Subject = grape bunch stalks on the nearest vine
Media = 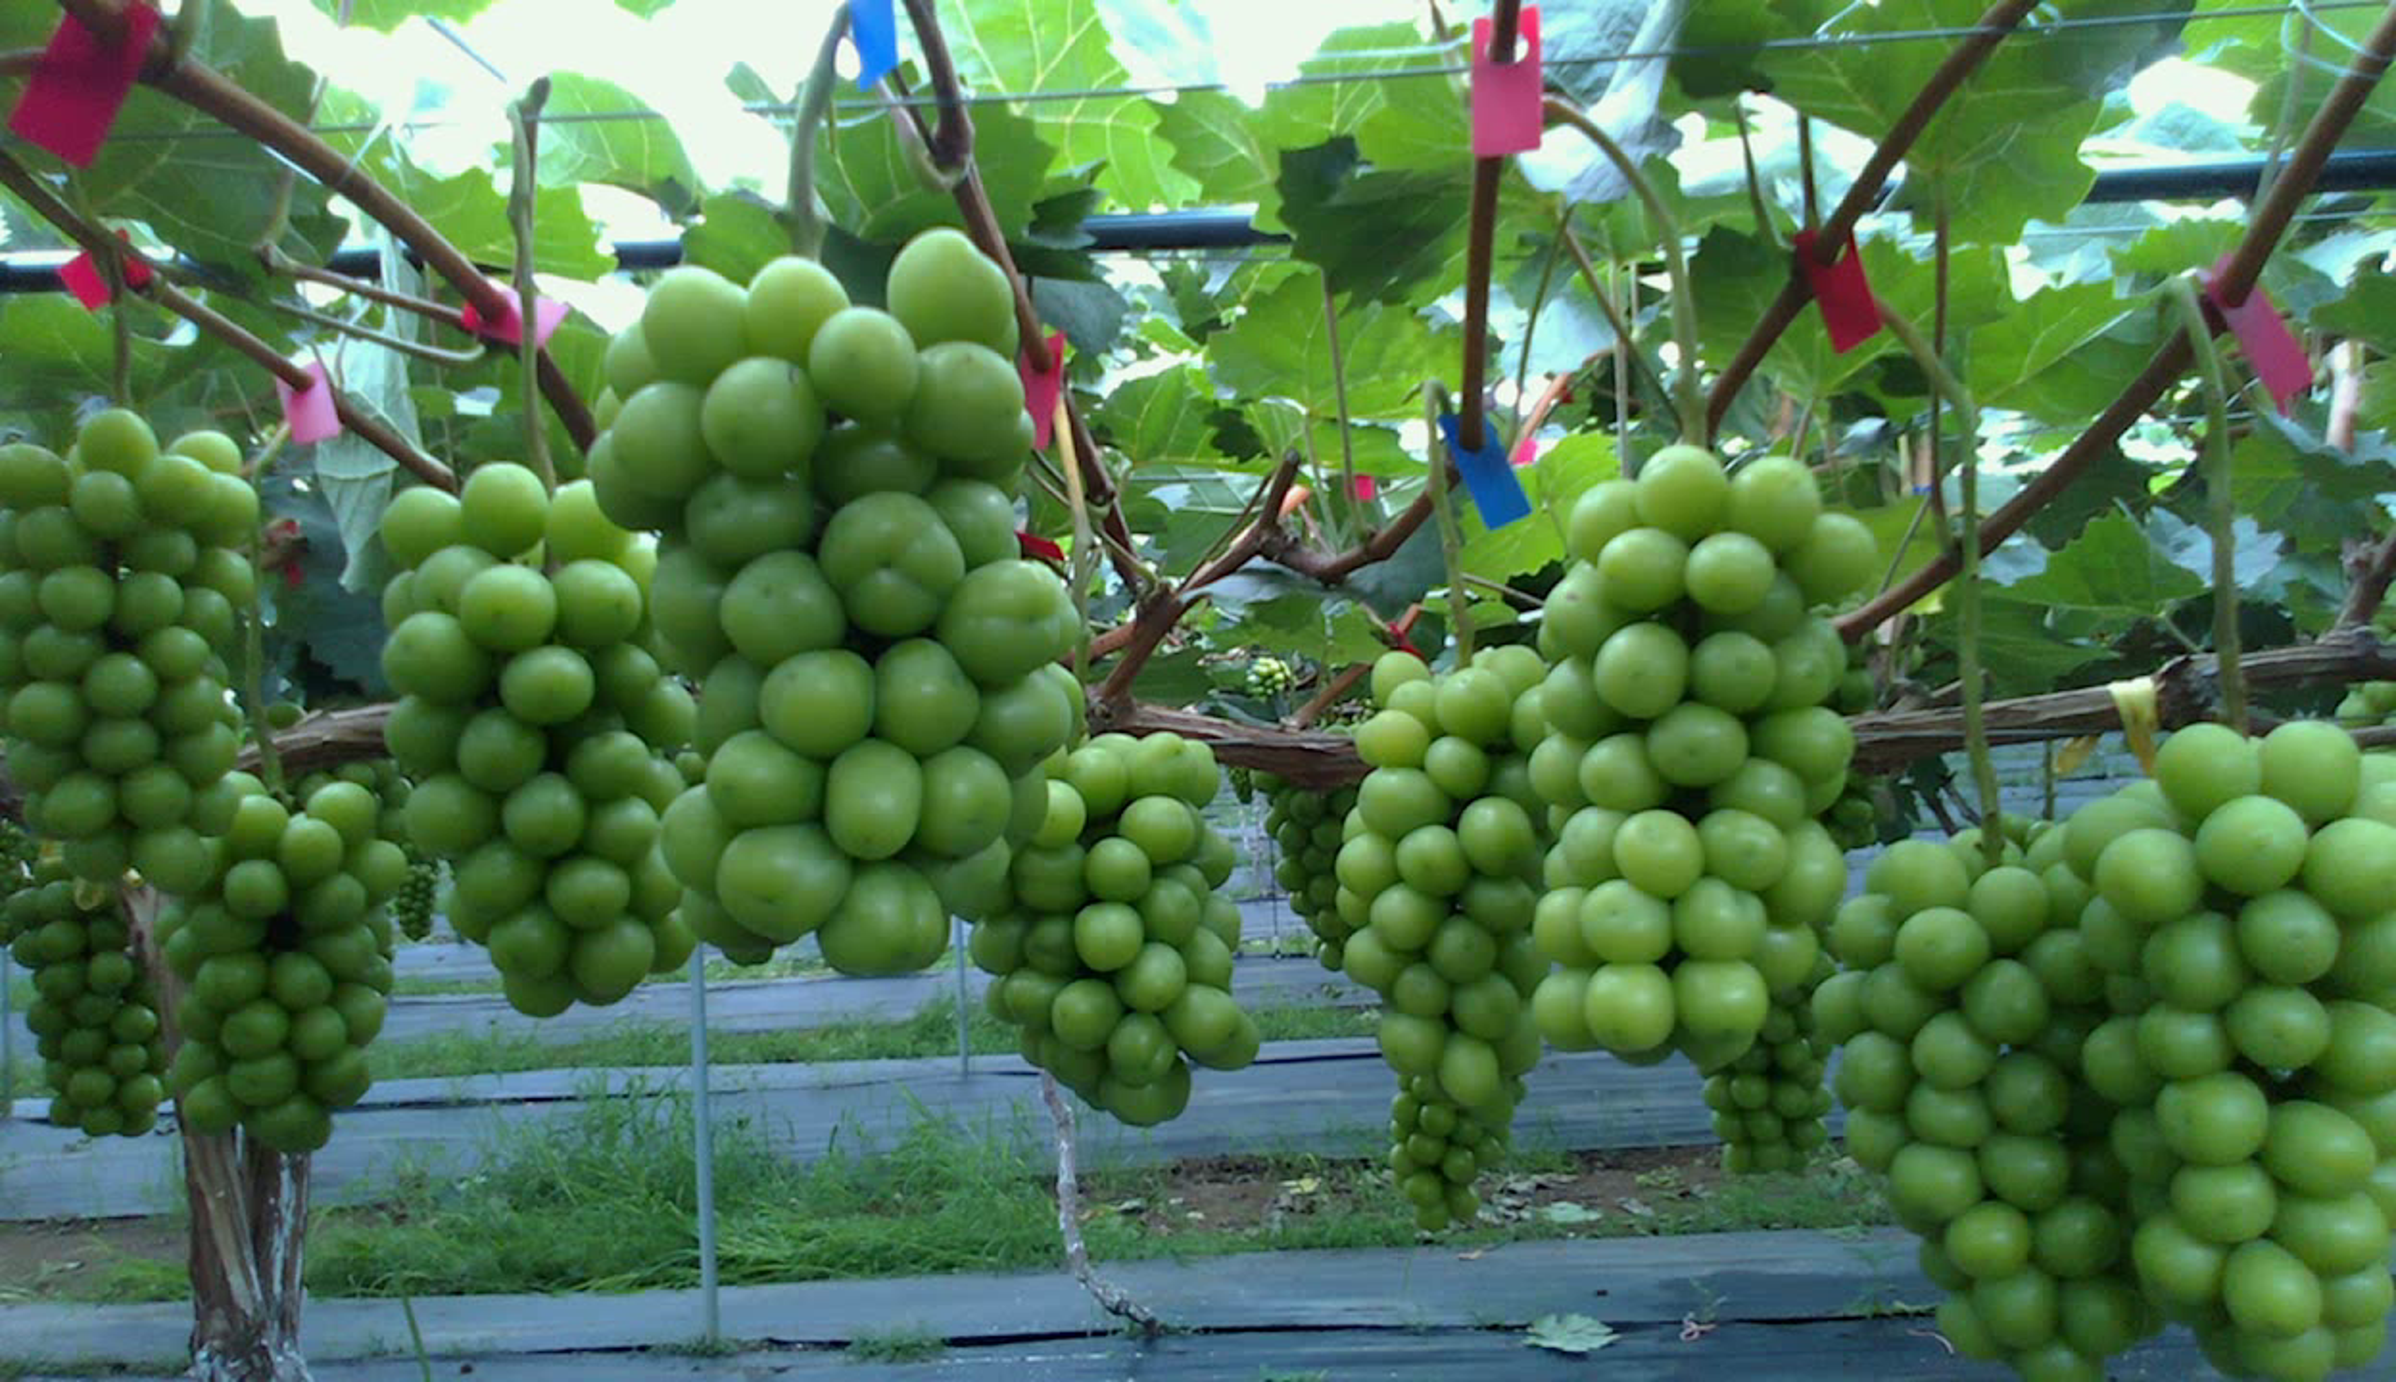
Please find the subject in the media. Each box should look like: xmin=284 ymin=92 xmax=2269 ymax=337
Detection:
xmin=244 ymin=547 xmax=288 ymax=802
xmin=779 ymin=10 xmax=847 ymax=255
xmin=1570 ymin=113 xmax=1705 ymax=445
xmin=104 ymin=248 xmax=132 ymax=407
xmin=2156 ymin=282 xmax=2248 ymax=731
xmin=509 ymin=73 xmax=555 ymax=488
xmin=1908 ymin=334 xmax=2008 ymax=864
xmin=1054 ymin=422 xmax=1094 ymax=681
xmin=1421 ymin=386 xmax=1473 ymax=666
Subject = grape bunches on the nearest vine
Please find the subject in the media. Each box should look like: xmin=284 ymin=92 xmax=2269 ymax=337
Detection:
xmin=1526 ymin=445 xmax=1876 ymax=1071
xmin=968 ymin=731 xmax=1259 ymax=1129
xmin=154 ymin=774 xmax=405 ymax=1156
xmin=1334 ymin=643 xmax=1549 ymax=1113
xmin=0 ymin=411 xmax=261 ymax=894
xmin=1809 ymin=814 xmax=2166 ymax=1380
xmin=2068 ymin=722 xmax=2394 ymax=1380
xmin=582 ymin=228 xmax=1089 ymax=977
xmin=376 ymin=461 xmax=699 ymax=1019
